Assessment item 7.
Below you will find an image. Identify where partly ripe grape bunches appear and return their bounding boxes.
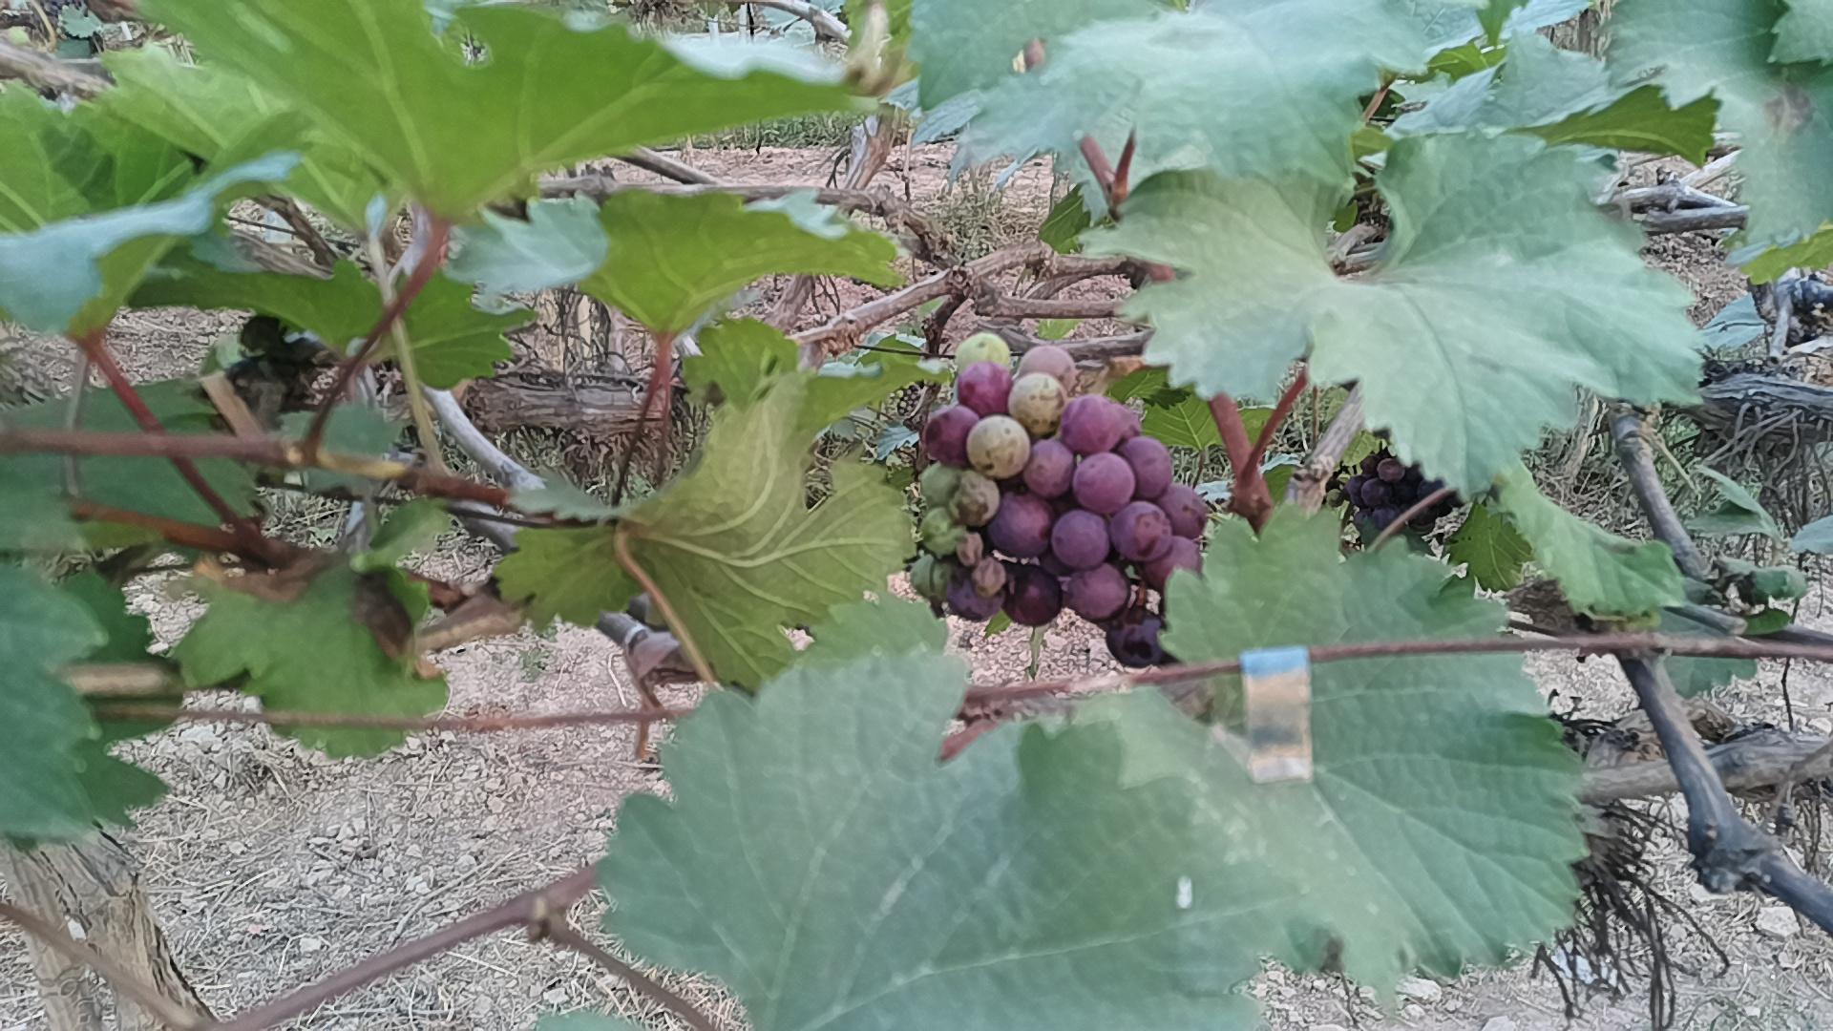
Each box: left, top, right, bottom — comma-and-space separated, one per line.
911, 332, 1207, 666
1326, 448, 1464, 534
